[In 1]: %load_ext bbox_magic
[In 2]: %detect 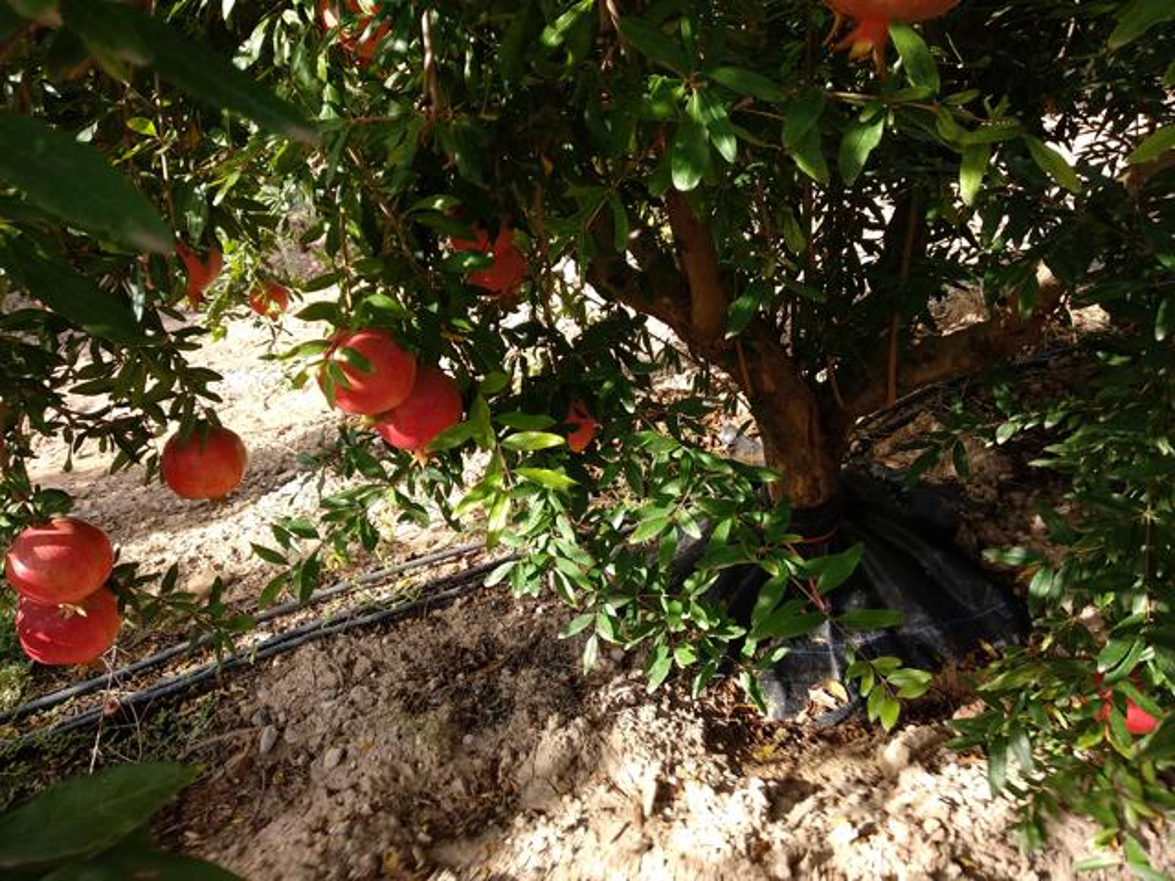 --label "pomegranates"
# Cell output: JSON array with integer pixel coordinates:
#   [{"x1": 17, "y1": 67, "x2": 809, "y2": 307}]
[
  {"x1": 564, "y1": 411, "x2": 595, "y2": 453},
  {"x1": 452, "y1": 228, "x2": 531, "y2": 312},
  {"x1": 319, "y1": 0, "x2": 389, "y2": 70},
  {"x1": 323, "y1": 329, "x2": 419, "y2": 415},
  {"x1": 1094, "y1": 674, "x2": 1160, "y2": 738},
  {"x1": 13, "y1": 587, "x2": 123, "y2": 664},
  {"x1": 375, "y1": 363, "x2": 463, "y2": 472},
  {"x1": 6, "y1": 518, "x2": 112, "y2": 622},
  {"x1": 160, "y1": 426, "x2": 248, "y2": 512},
  {"x1": 250, "y1": 281, "x2": 290, "y2": 321},
  {"x1": 822, "y1": 0, "x2": 962, "y2": 79},
  {"x1": 176, "y1": 242, "x2": 224, "y2": 310}
]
